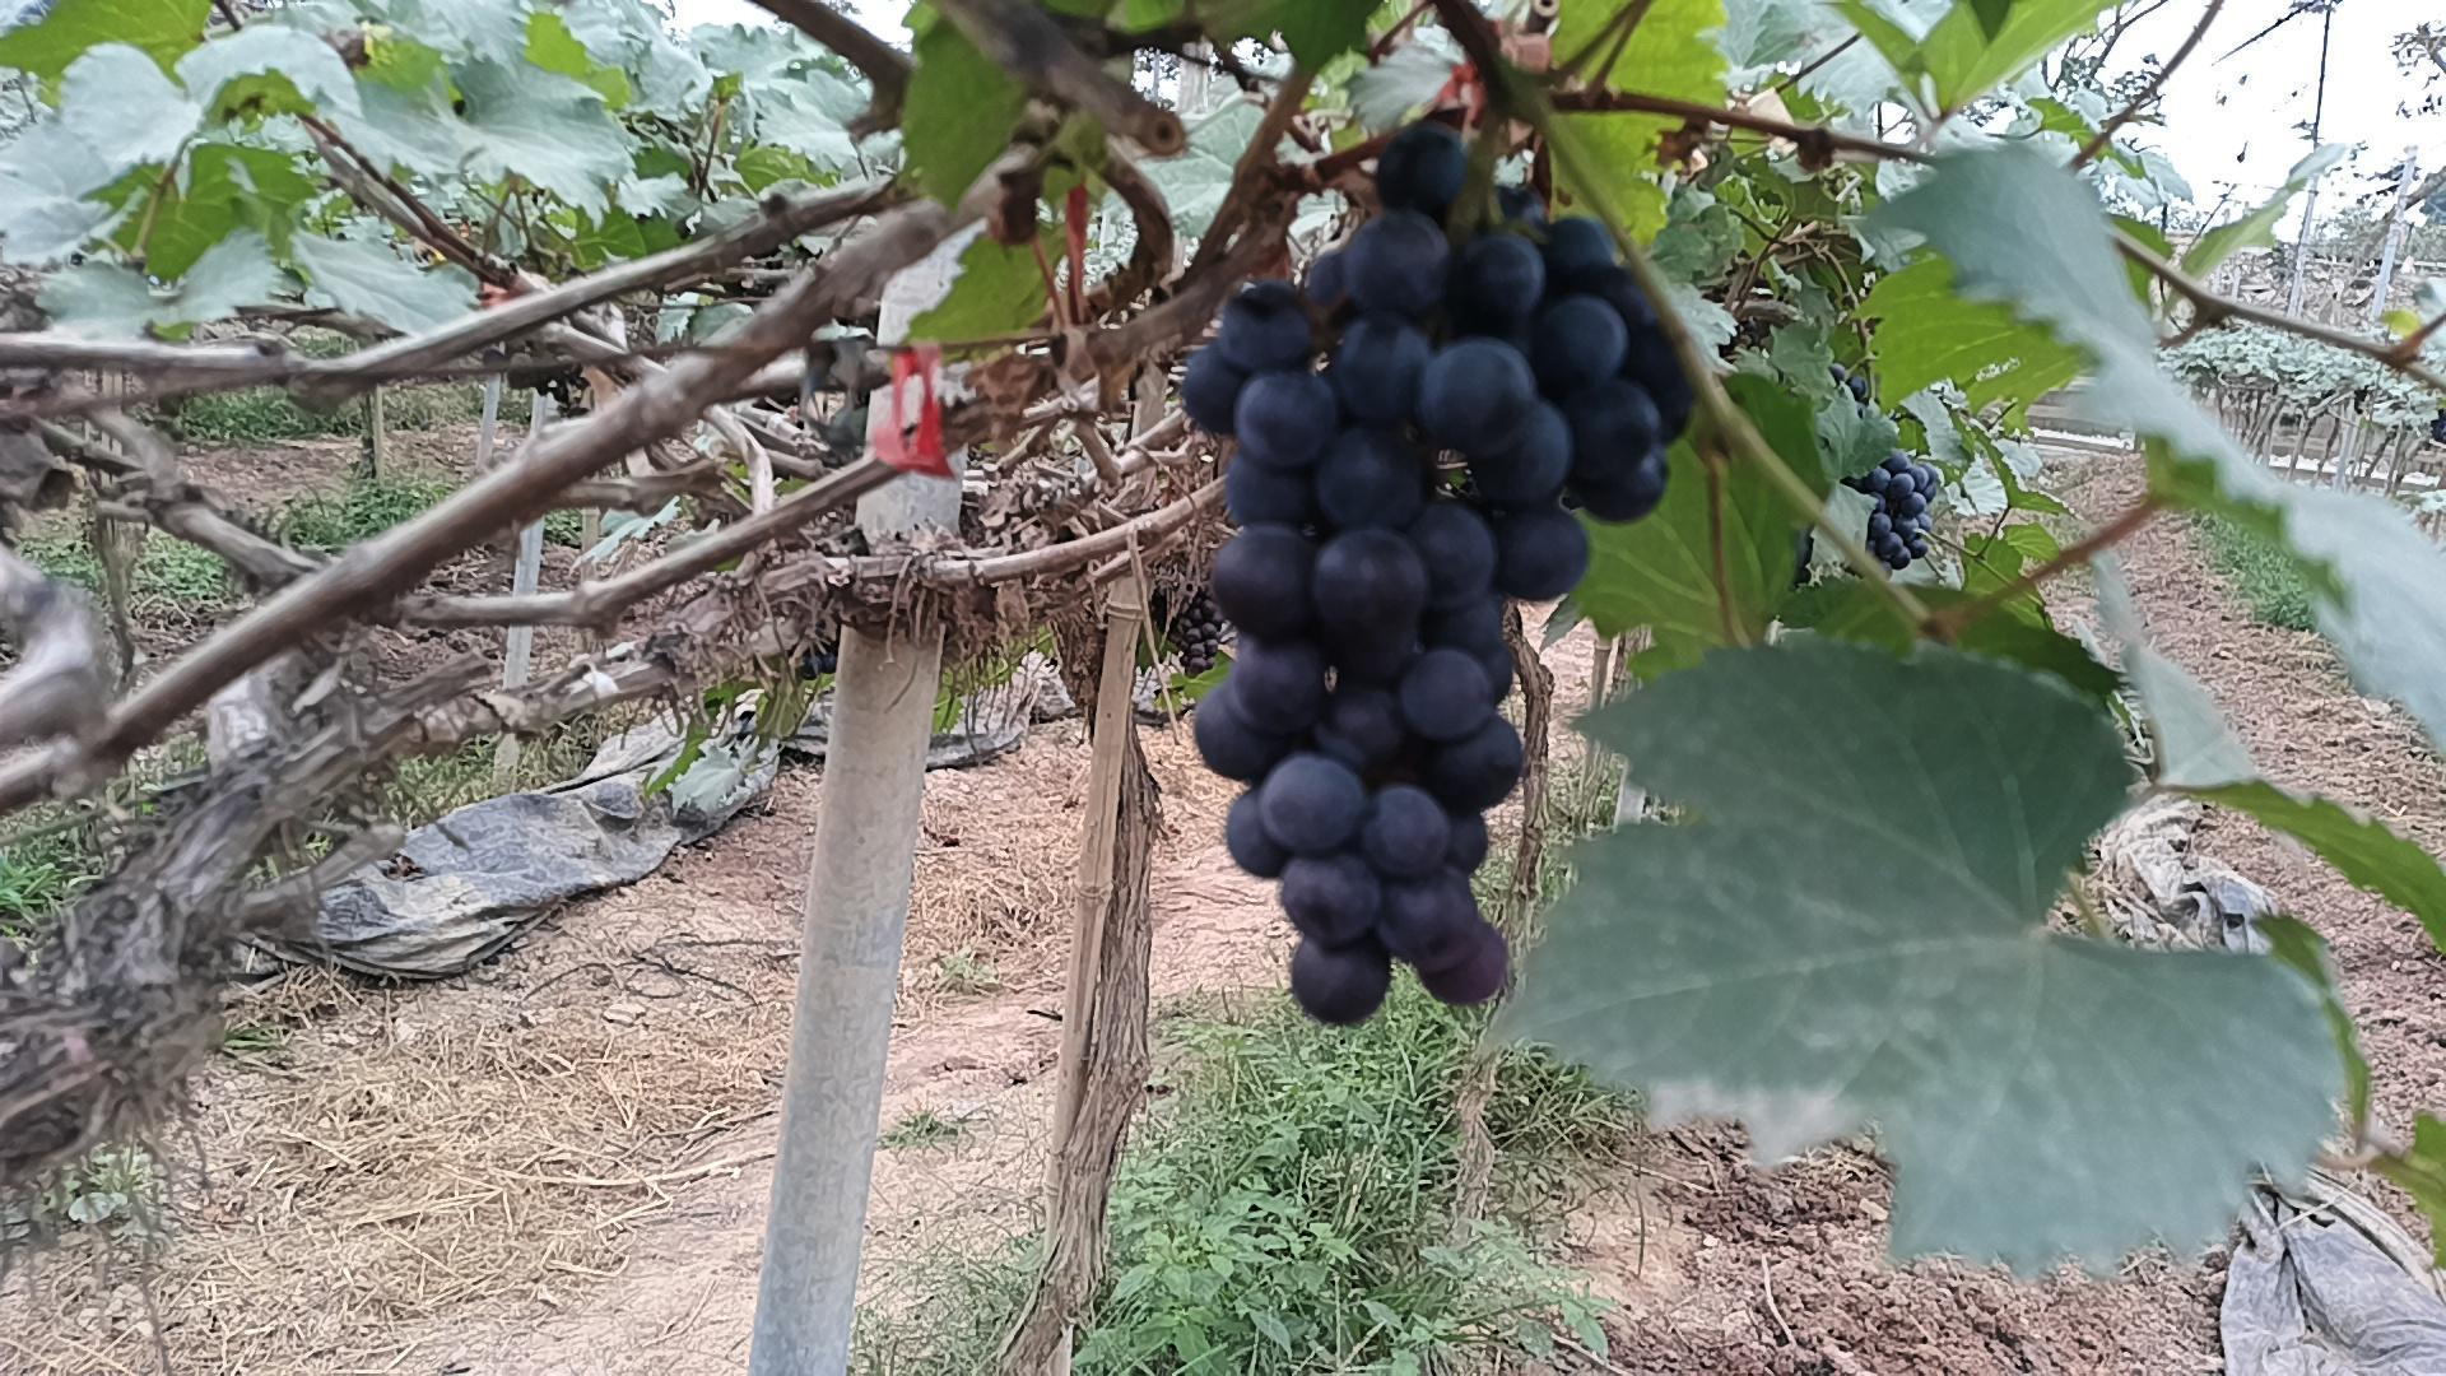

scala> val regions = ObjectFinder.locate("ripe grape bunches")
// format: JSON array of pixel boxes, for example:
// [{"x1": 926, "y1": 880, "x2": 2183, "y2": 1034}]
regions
[
  {"x1": 786, "y1": 622, "x2": 842, "y2": 680},
  {"x1": 1186, "y1": 118, "x2": 1691, "y2": 1023},
  {"x1": 1148, "y1": 584, "x2": 1227, "y2": 680},
  {"x1": 1829, "y1": 366, "x2": 1936, "y2": 581}
]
